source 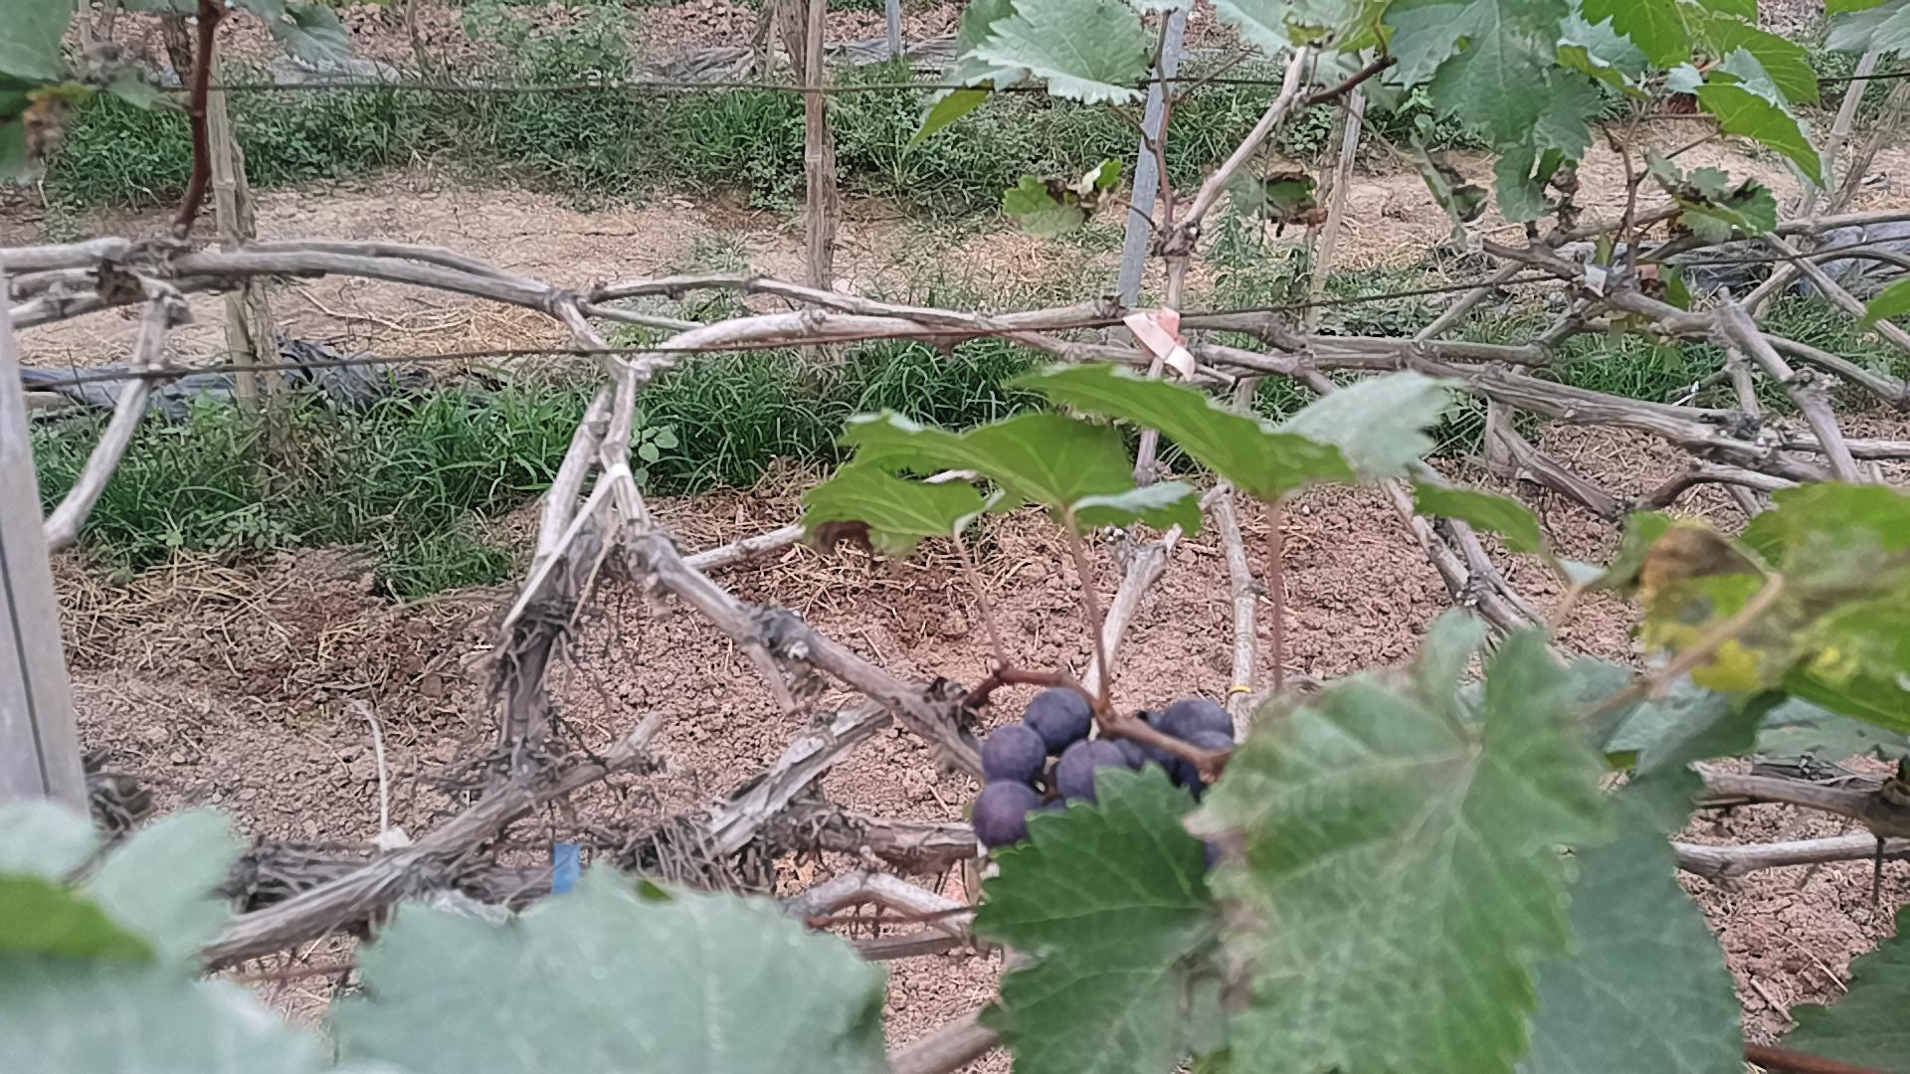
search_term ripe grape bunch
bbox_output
[971,685,1233,847]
